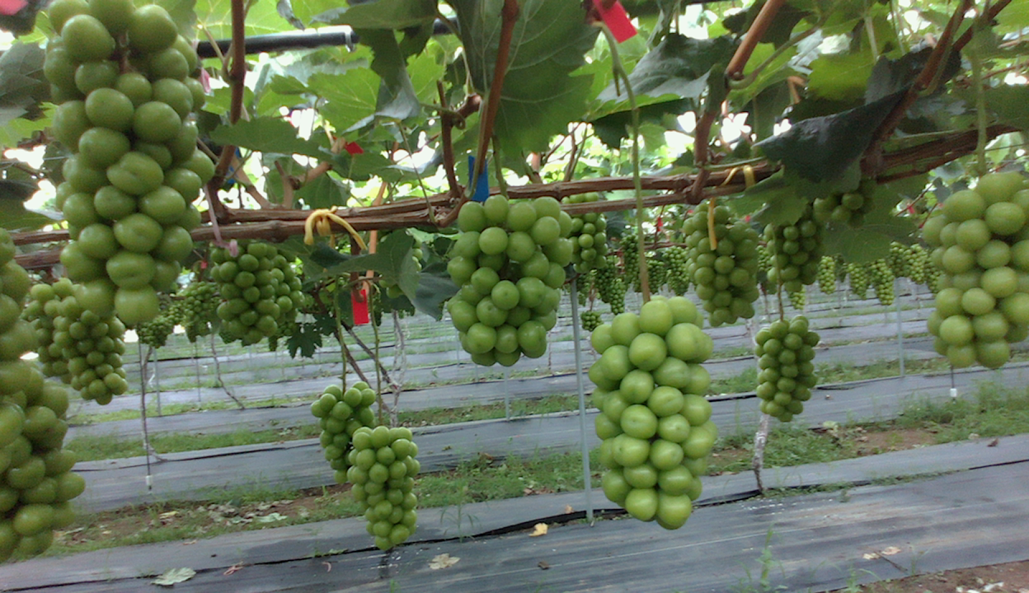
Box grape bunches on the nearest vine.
[1,228,40,448]
[923,172,1028,371]
[40,0,216,323]
[444,196,573,369]
[590,295,718,530]
[0,364,85,563]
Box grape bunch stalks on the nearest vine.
[491,135,508,198]
[598,23,650,302]
[971,7,987,175]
